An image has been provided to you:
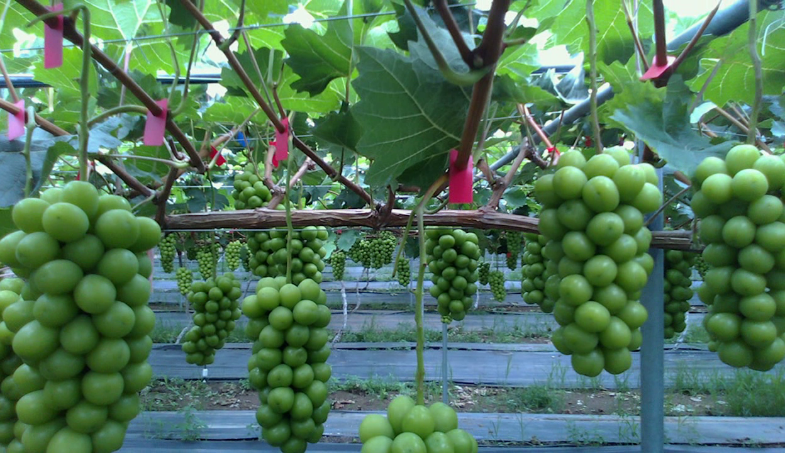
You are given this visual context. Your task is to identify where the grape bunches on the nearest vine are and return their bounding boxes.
[0,180,160,452]
[536,146,662,377]
[358,394,477,452]
[691,142,784,372]
[0,342,23,447]
[242,276,331,452]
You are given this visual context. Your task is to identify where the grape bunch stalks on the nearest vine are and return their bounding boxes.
[585,0,603,154]
[67,3,91,181]
[747,0,762,145]
[415,172,448,406]
[284,135,293,284]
